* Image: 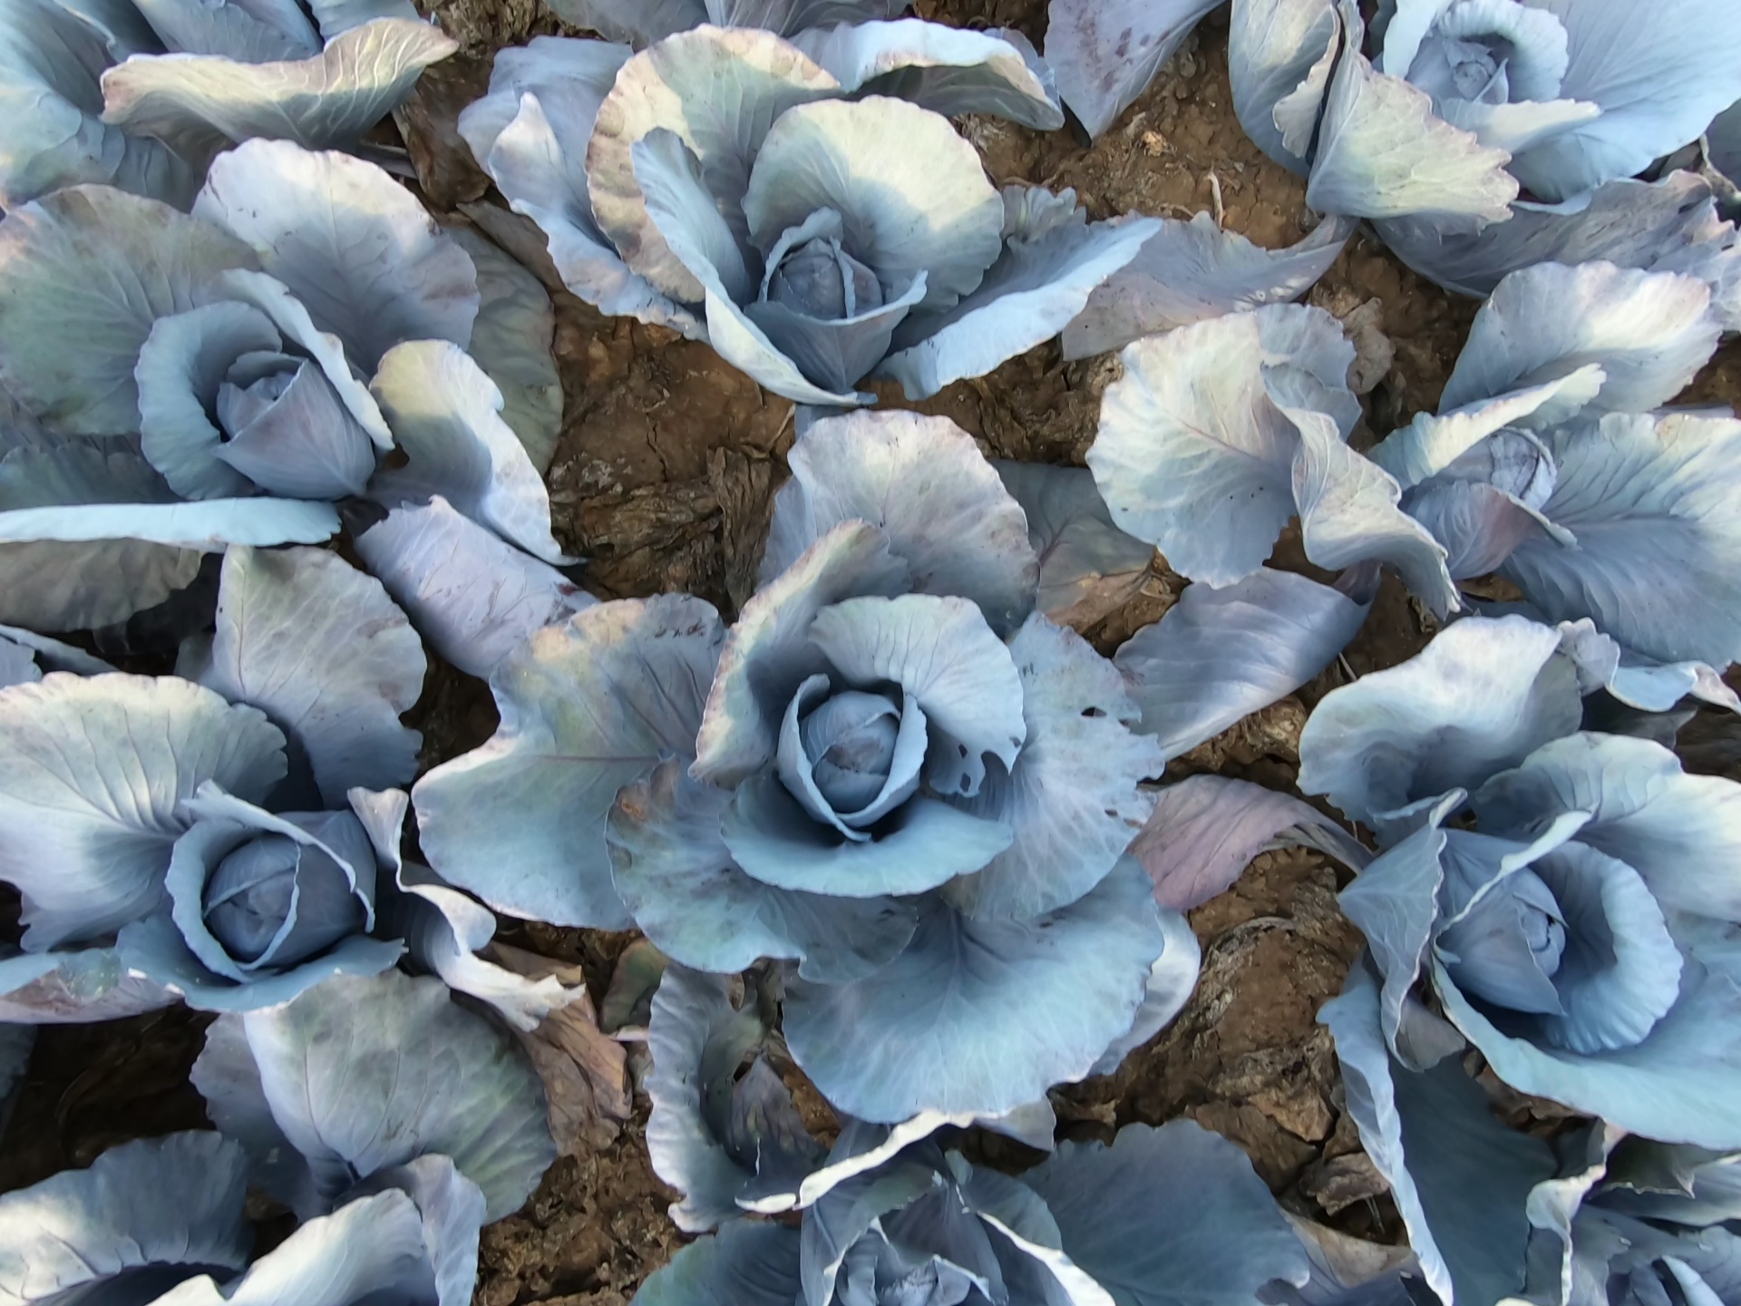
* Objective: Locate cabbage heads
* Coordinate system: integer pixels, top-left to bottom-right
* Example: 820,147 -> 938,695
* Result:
202,834 -> 353,959
1394,40 -> 1508,162
768,242 -> 880,362
1543,1221 -> 1726,1301
173,0 -> 318,76
230,373 -> 369,497
1454,861 -> 1568,976
802,693 -> 920,809
830,1184 -> 968,1304
1445,426 -> 1556,540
